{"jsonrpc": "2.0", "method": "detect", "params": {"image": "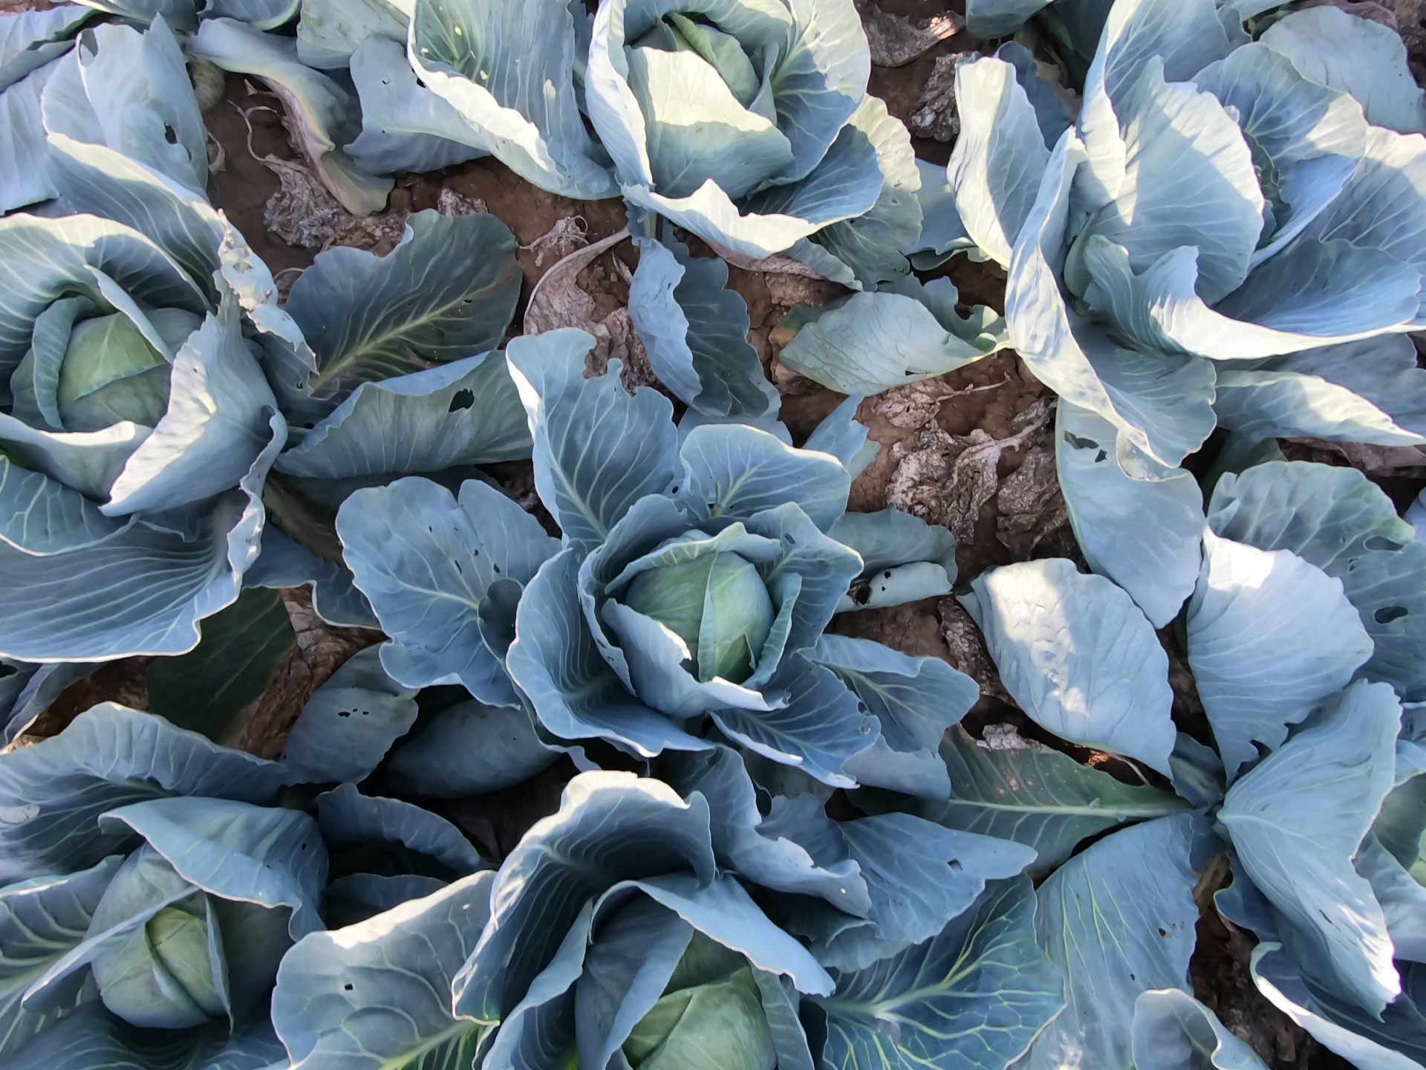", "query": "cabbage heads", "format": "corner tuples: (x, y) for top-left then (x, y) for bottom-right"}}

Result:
(622, 542), (779, 699)
(581, 898), (792, 1068)
(623, 14), (767, 169)
(1336, 762), (1422, 898)
(85, 834), (304, 1029)
(30, 312), (236, 462)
